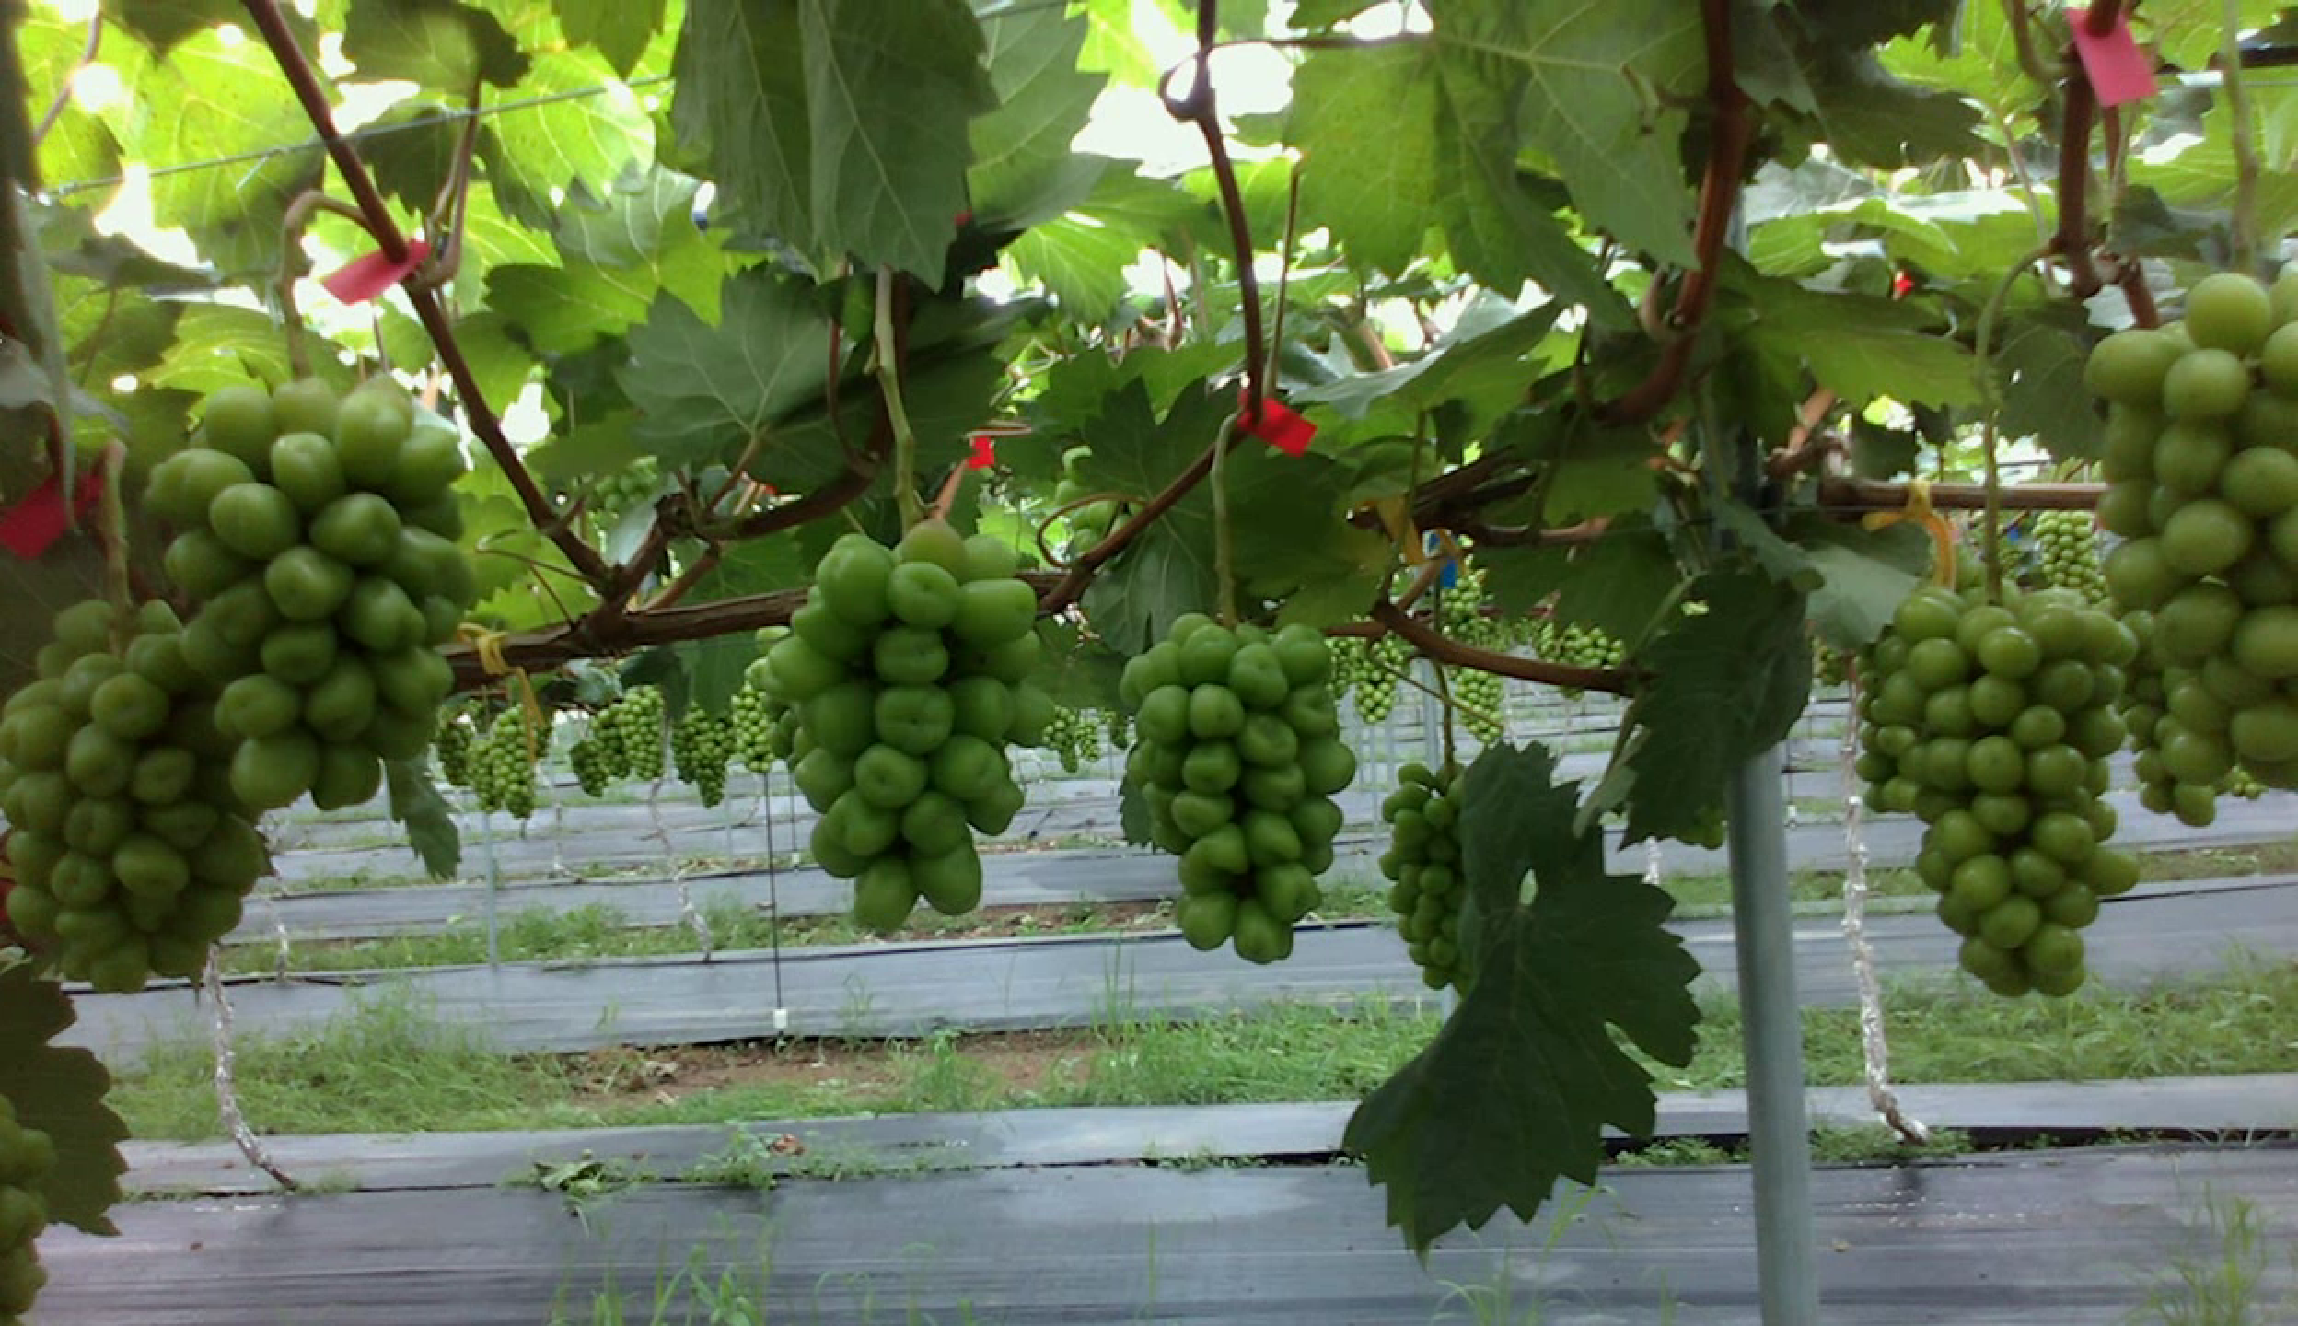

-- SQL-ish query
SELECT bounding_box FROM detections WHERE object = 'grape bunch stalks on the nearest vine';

[864,273,923,530]
[274,190,357,370]
[1972,245,2046,602]
[94,436,140,652]
[2211,0,2257,267]
[1208,409,1237,626]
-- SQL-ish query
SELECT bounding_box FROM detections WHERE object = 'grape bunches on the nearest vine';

[766,516,1057,937]
[0,600,265,996]
[2086,269,2296,792]
[160,376,473,814]
[1114,611,1355,967]
[1876,582,2141,1000]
